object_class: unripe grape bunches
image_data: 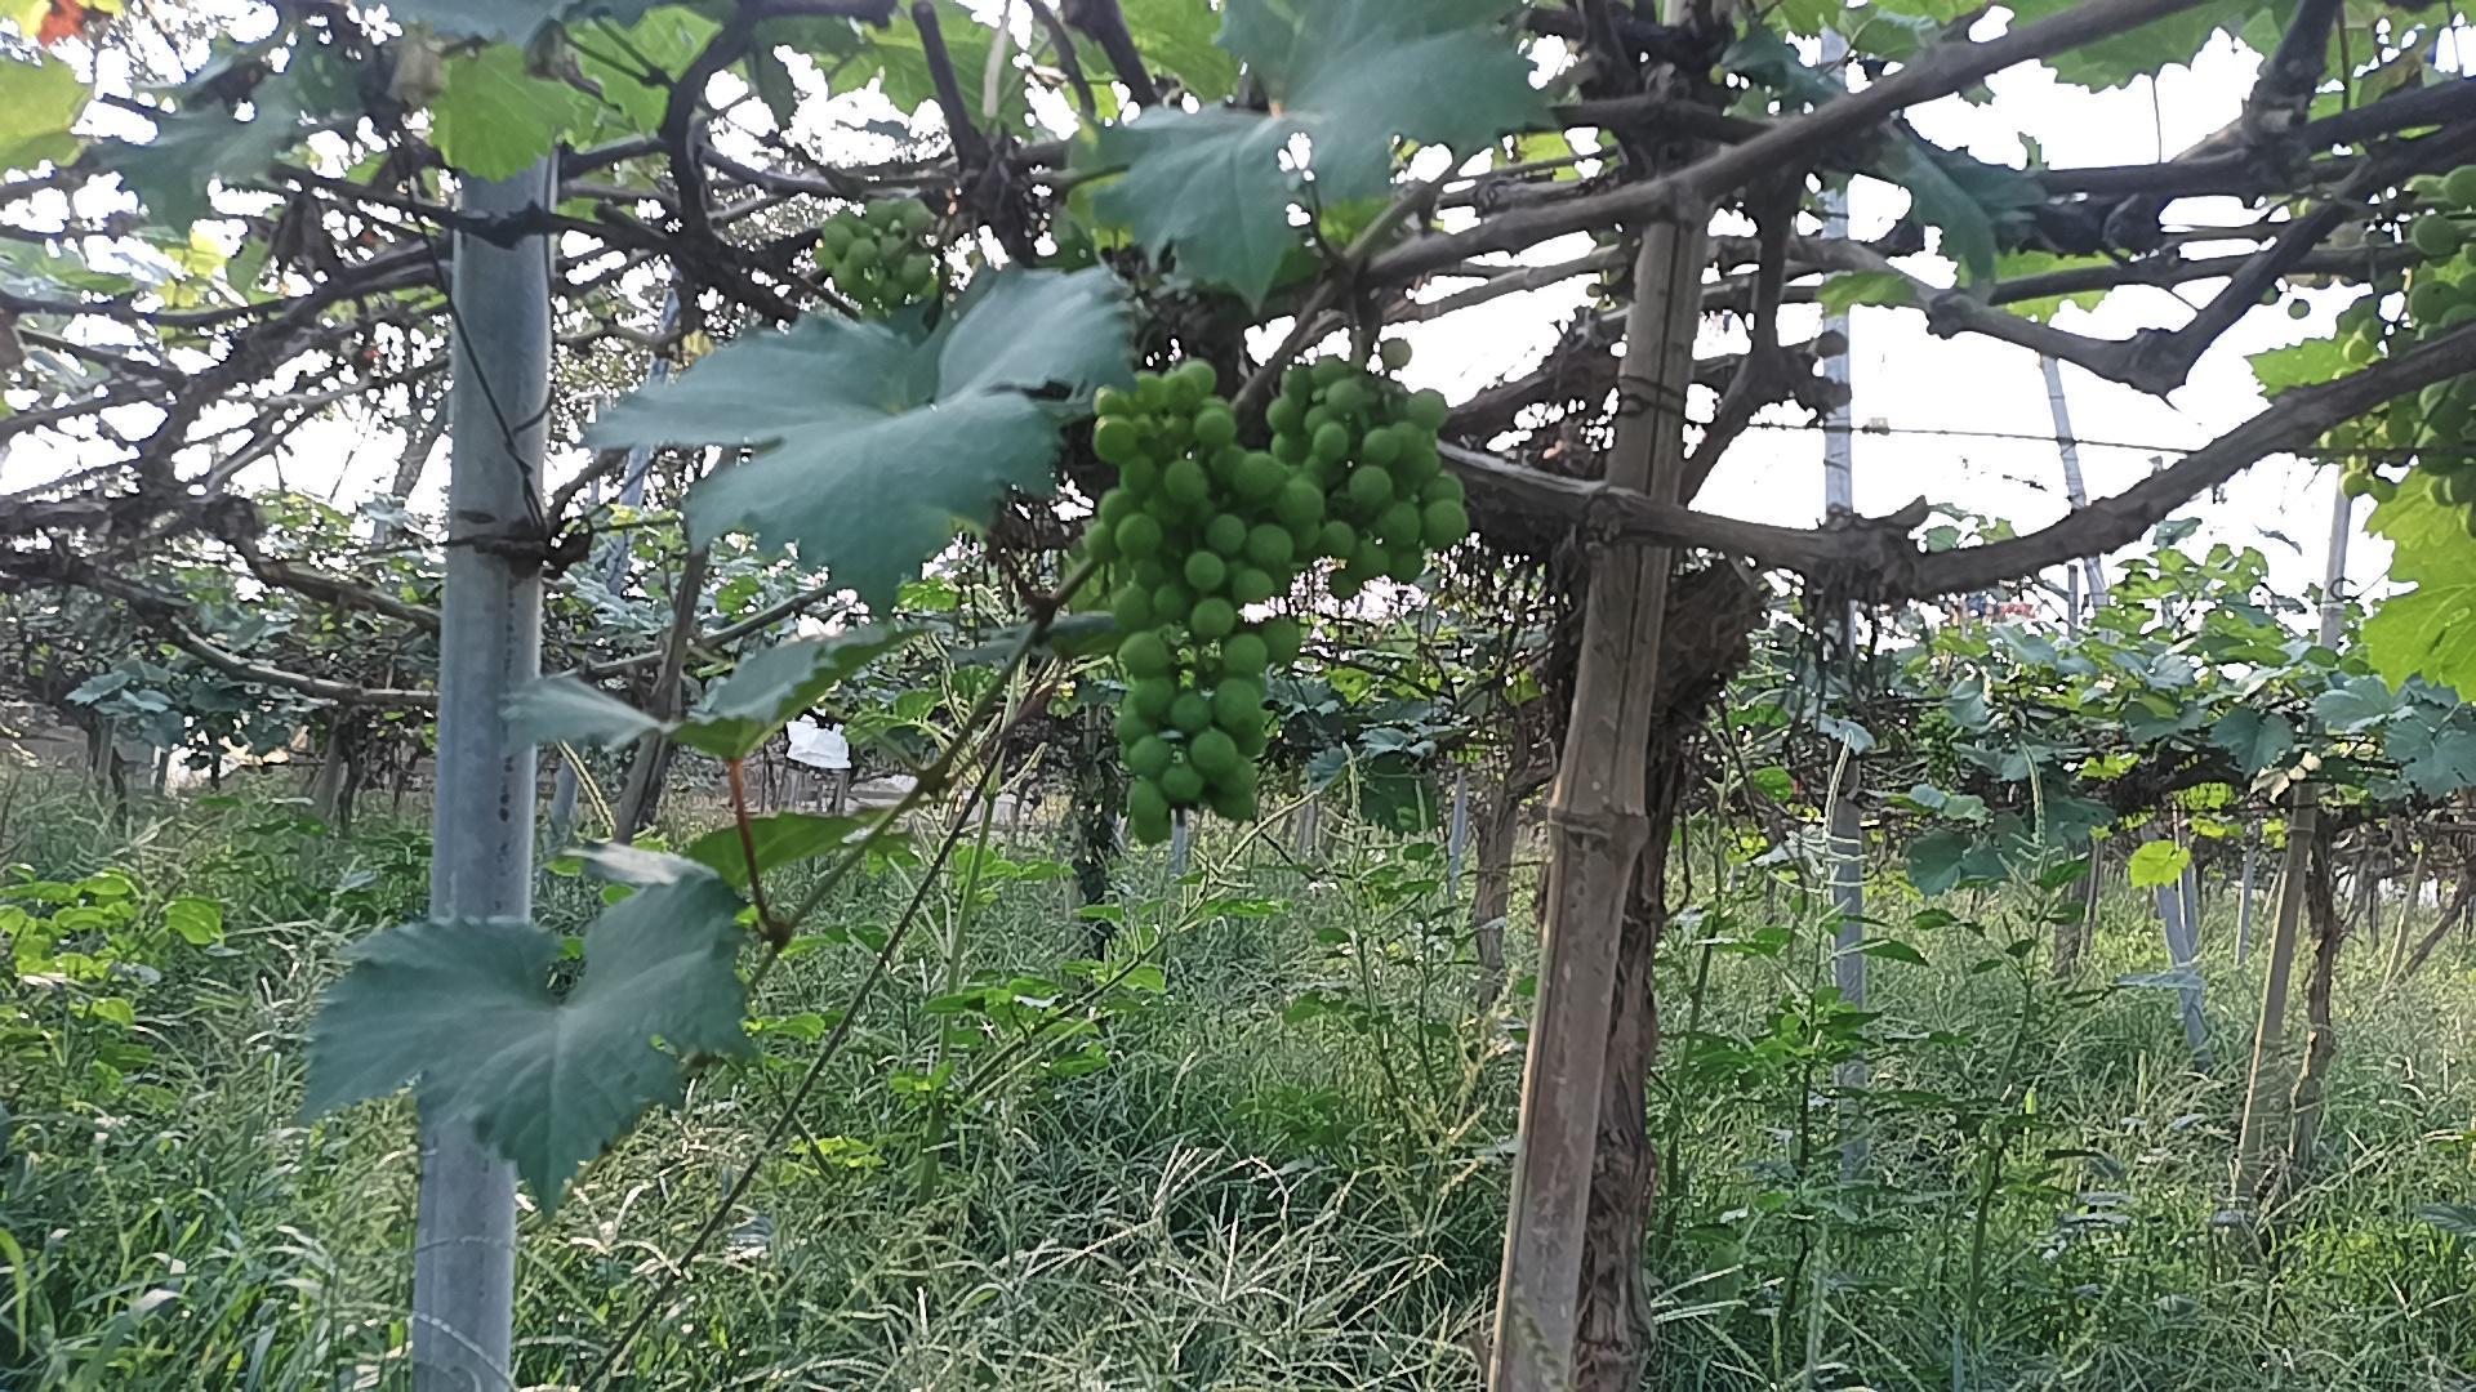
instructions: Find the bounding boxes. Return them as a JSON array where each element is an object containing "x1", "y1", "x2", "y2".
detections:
[
  {"x1": 1266, "y1": 338, "x2": 1469, "y2": 599},
  {"x1": 812, "y1": 198, "x2": 939, "y2": 322},
  {"x1": 1085, "y1": 357, "x2": 1326, "y2": 846},
  {"x1": 2328, "y1": 164, "x2": 2475, "y2": 540}
]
